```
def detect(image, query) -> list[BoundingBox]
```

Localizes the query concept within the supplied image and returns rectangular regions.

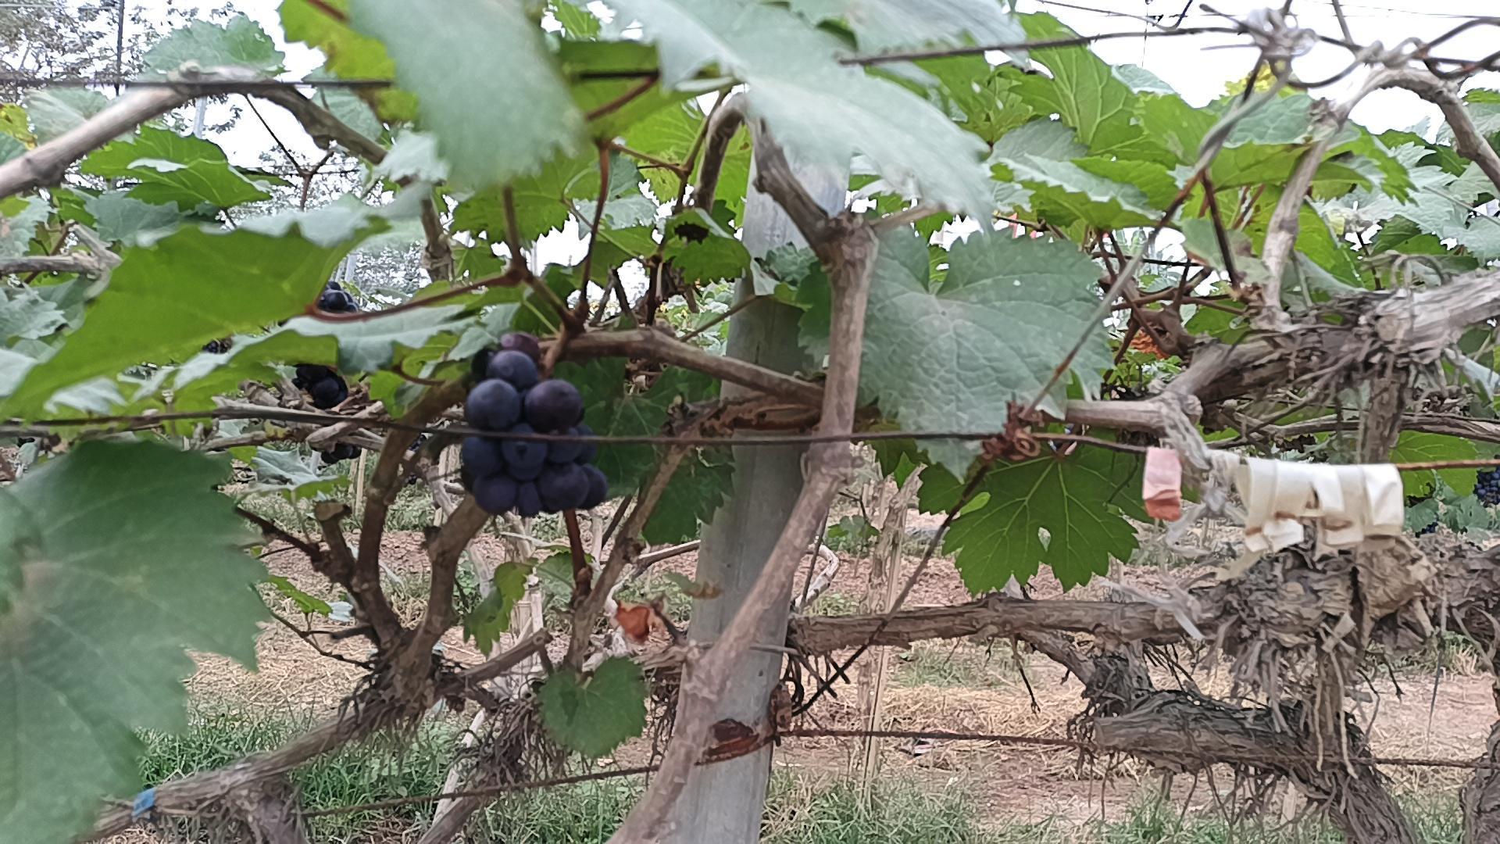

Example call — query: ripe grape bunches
[1473,465,1499,506]
[462,333,608,517]
[292,281,360,464]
